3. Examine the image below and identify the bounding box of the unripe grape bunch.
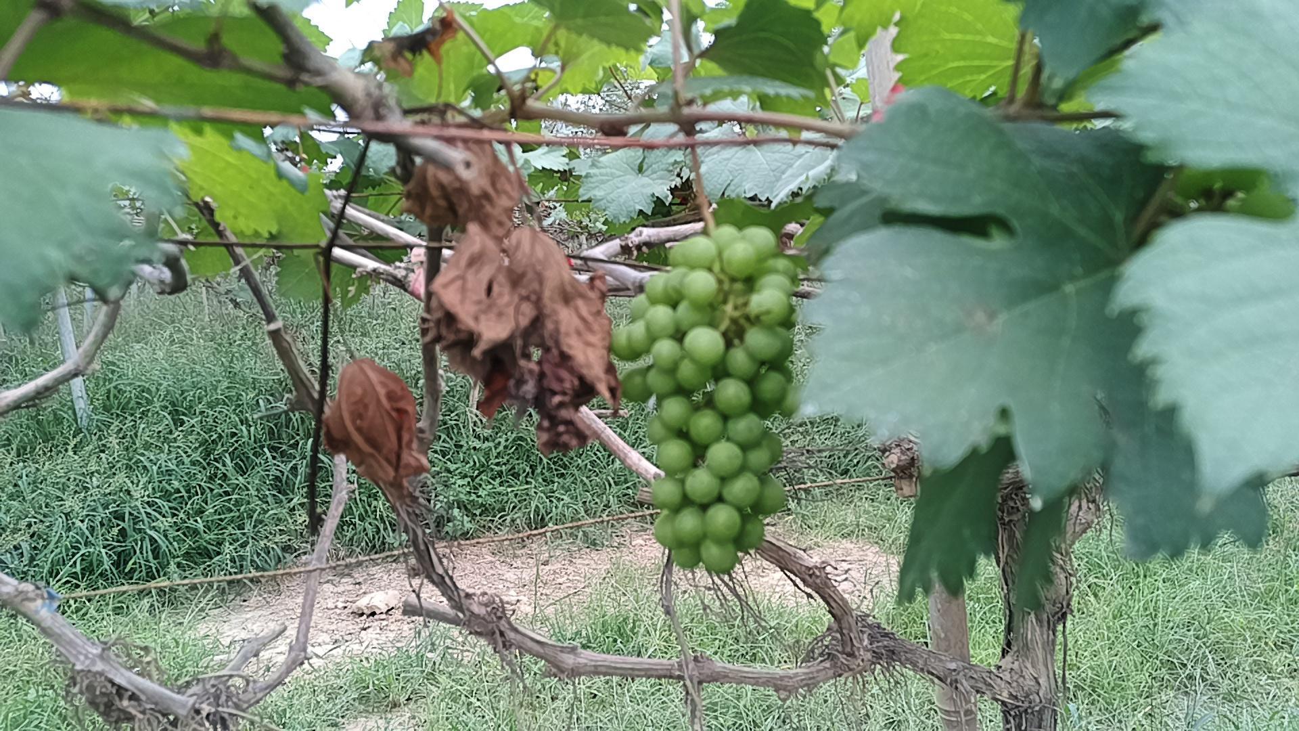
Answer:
[612,227,802,573]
